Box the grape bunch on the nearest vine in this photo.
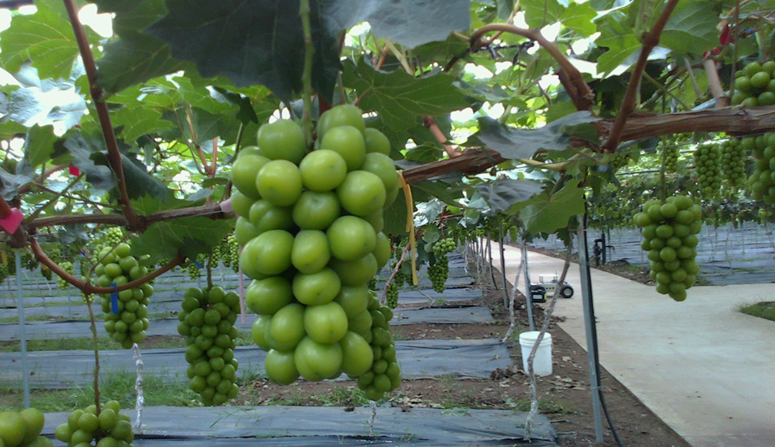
[229,106,400,387]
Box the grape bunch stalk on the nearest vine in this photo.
[300,0,314,154]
